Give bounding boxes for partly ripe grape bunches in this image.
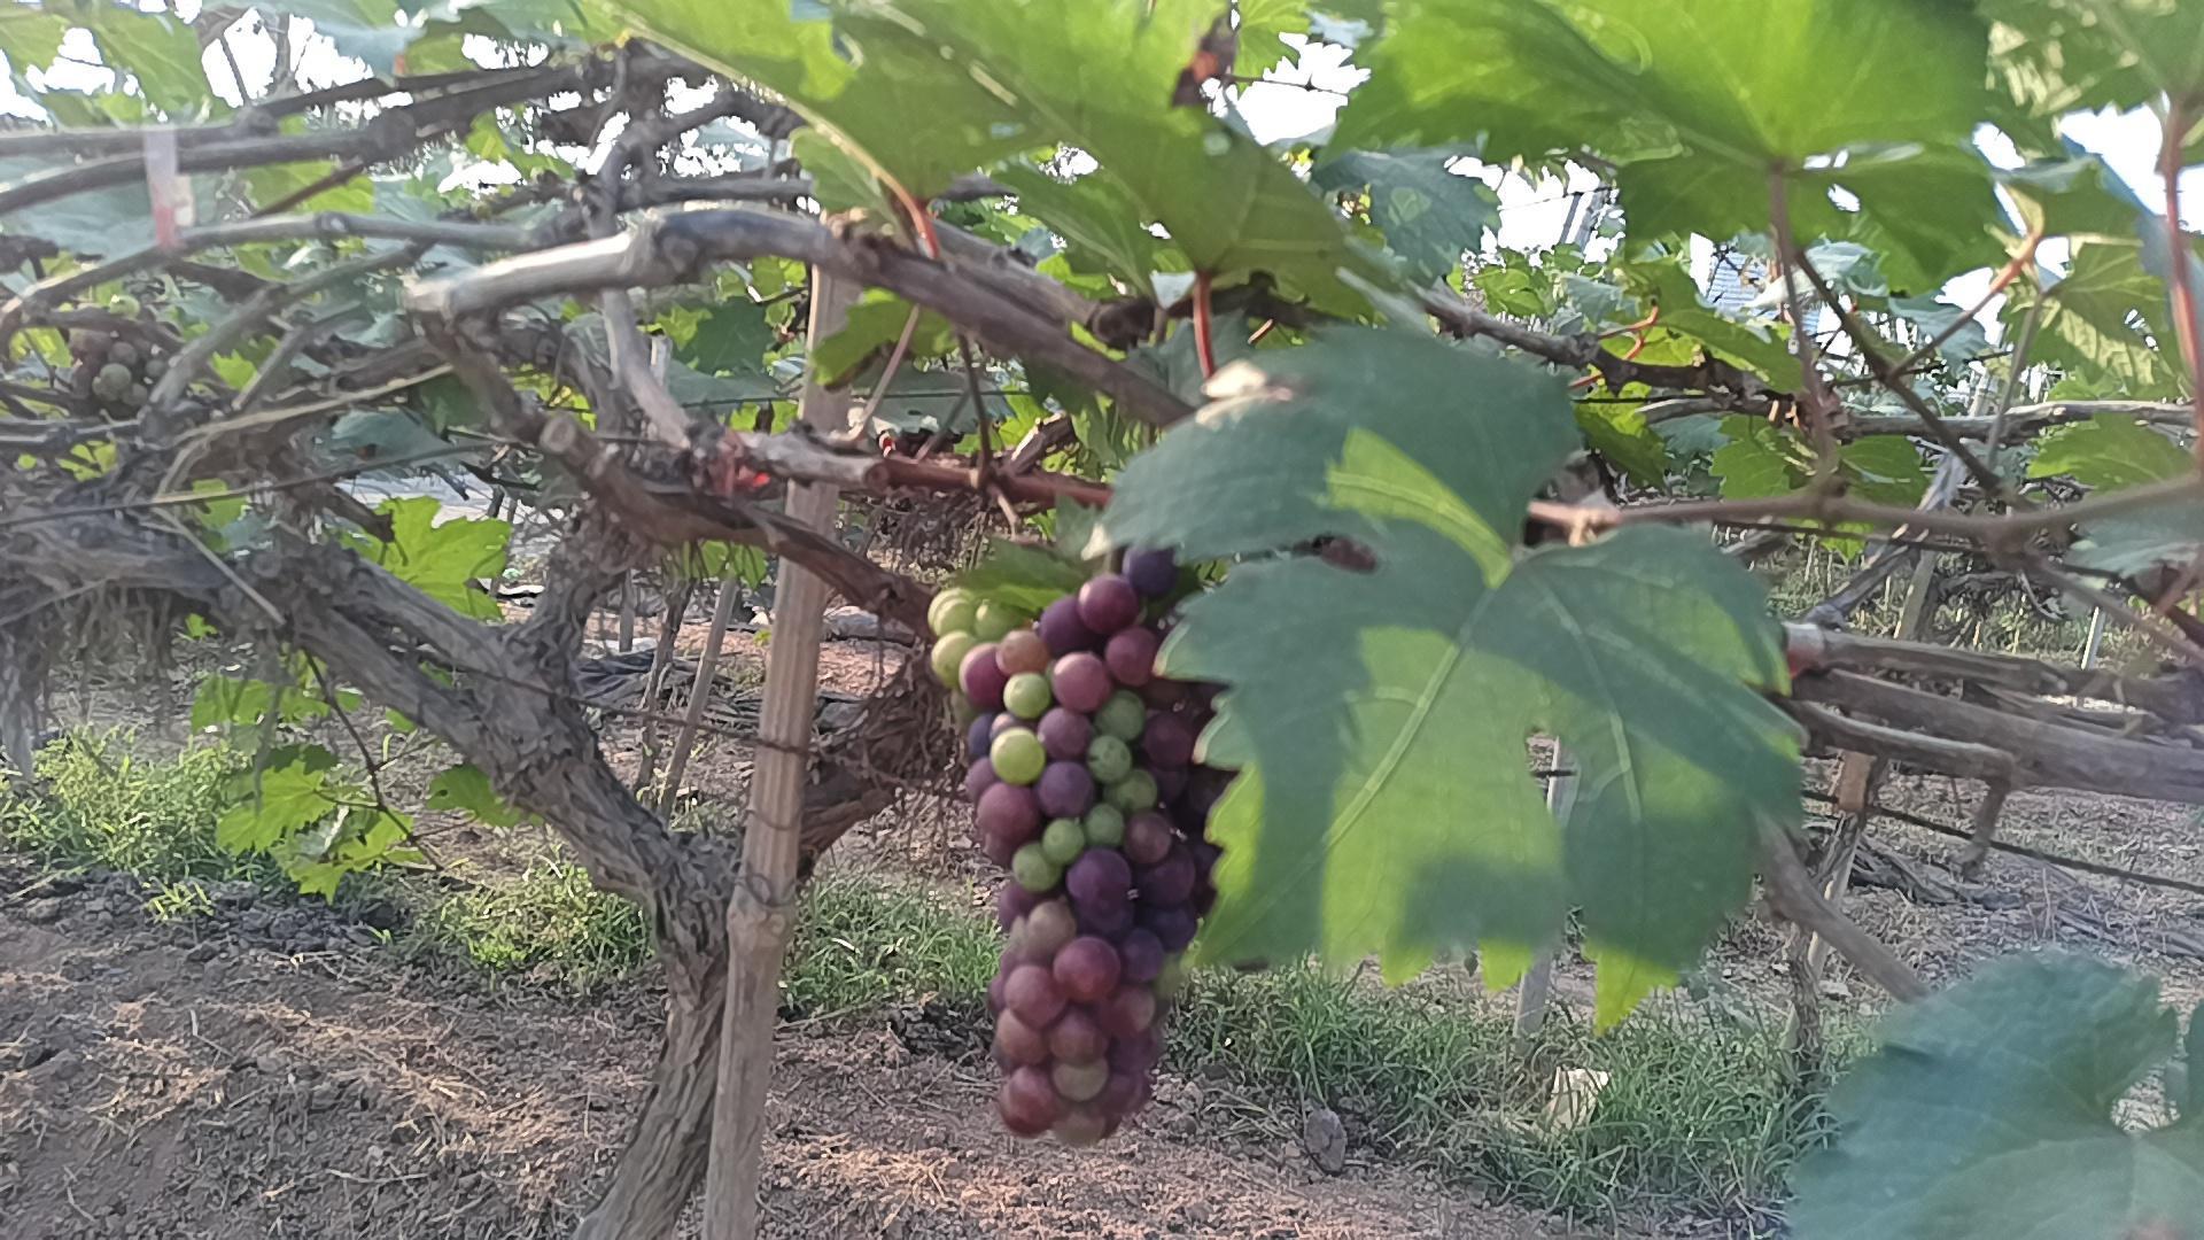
[64,294,181,419]
[930,549,1231,1144]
